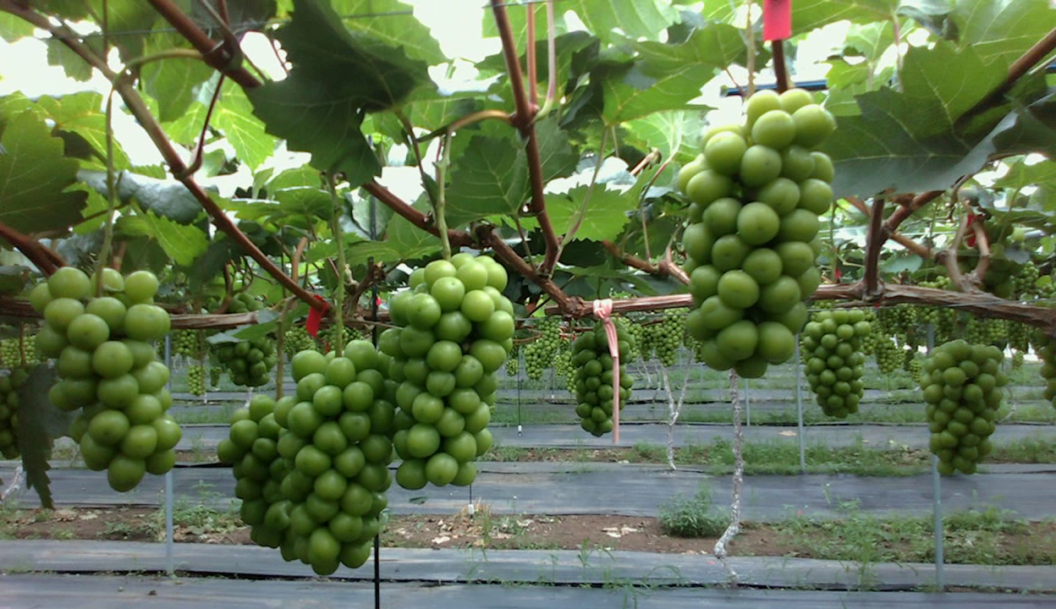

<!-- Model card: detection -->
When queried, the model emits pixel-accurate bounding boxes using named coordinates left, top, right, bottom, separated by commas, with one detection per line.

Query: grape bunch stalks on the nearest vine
left=327, top=176, right=346, bottom=357
left=95, top=88, right=114, bottom=297
left=432, top=109, right=510, bottom=261
left=745, top=1, right=755, bottom=100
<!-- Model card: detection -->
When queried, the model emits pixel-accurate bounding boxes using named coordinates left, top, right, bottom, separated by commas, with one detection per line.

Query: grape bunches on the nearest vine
left=27, top=266, right=183, bottom=492
left=377, top=253, right=514, bottom=490
left=264, top=340, right=400, bottom=575
left=676, top=88, right=835, bottom=379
